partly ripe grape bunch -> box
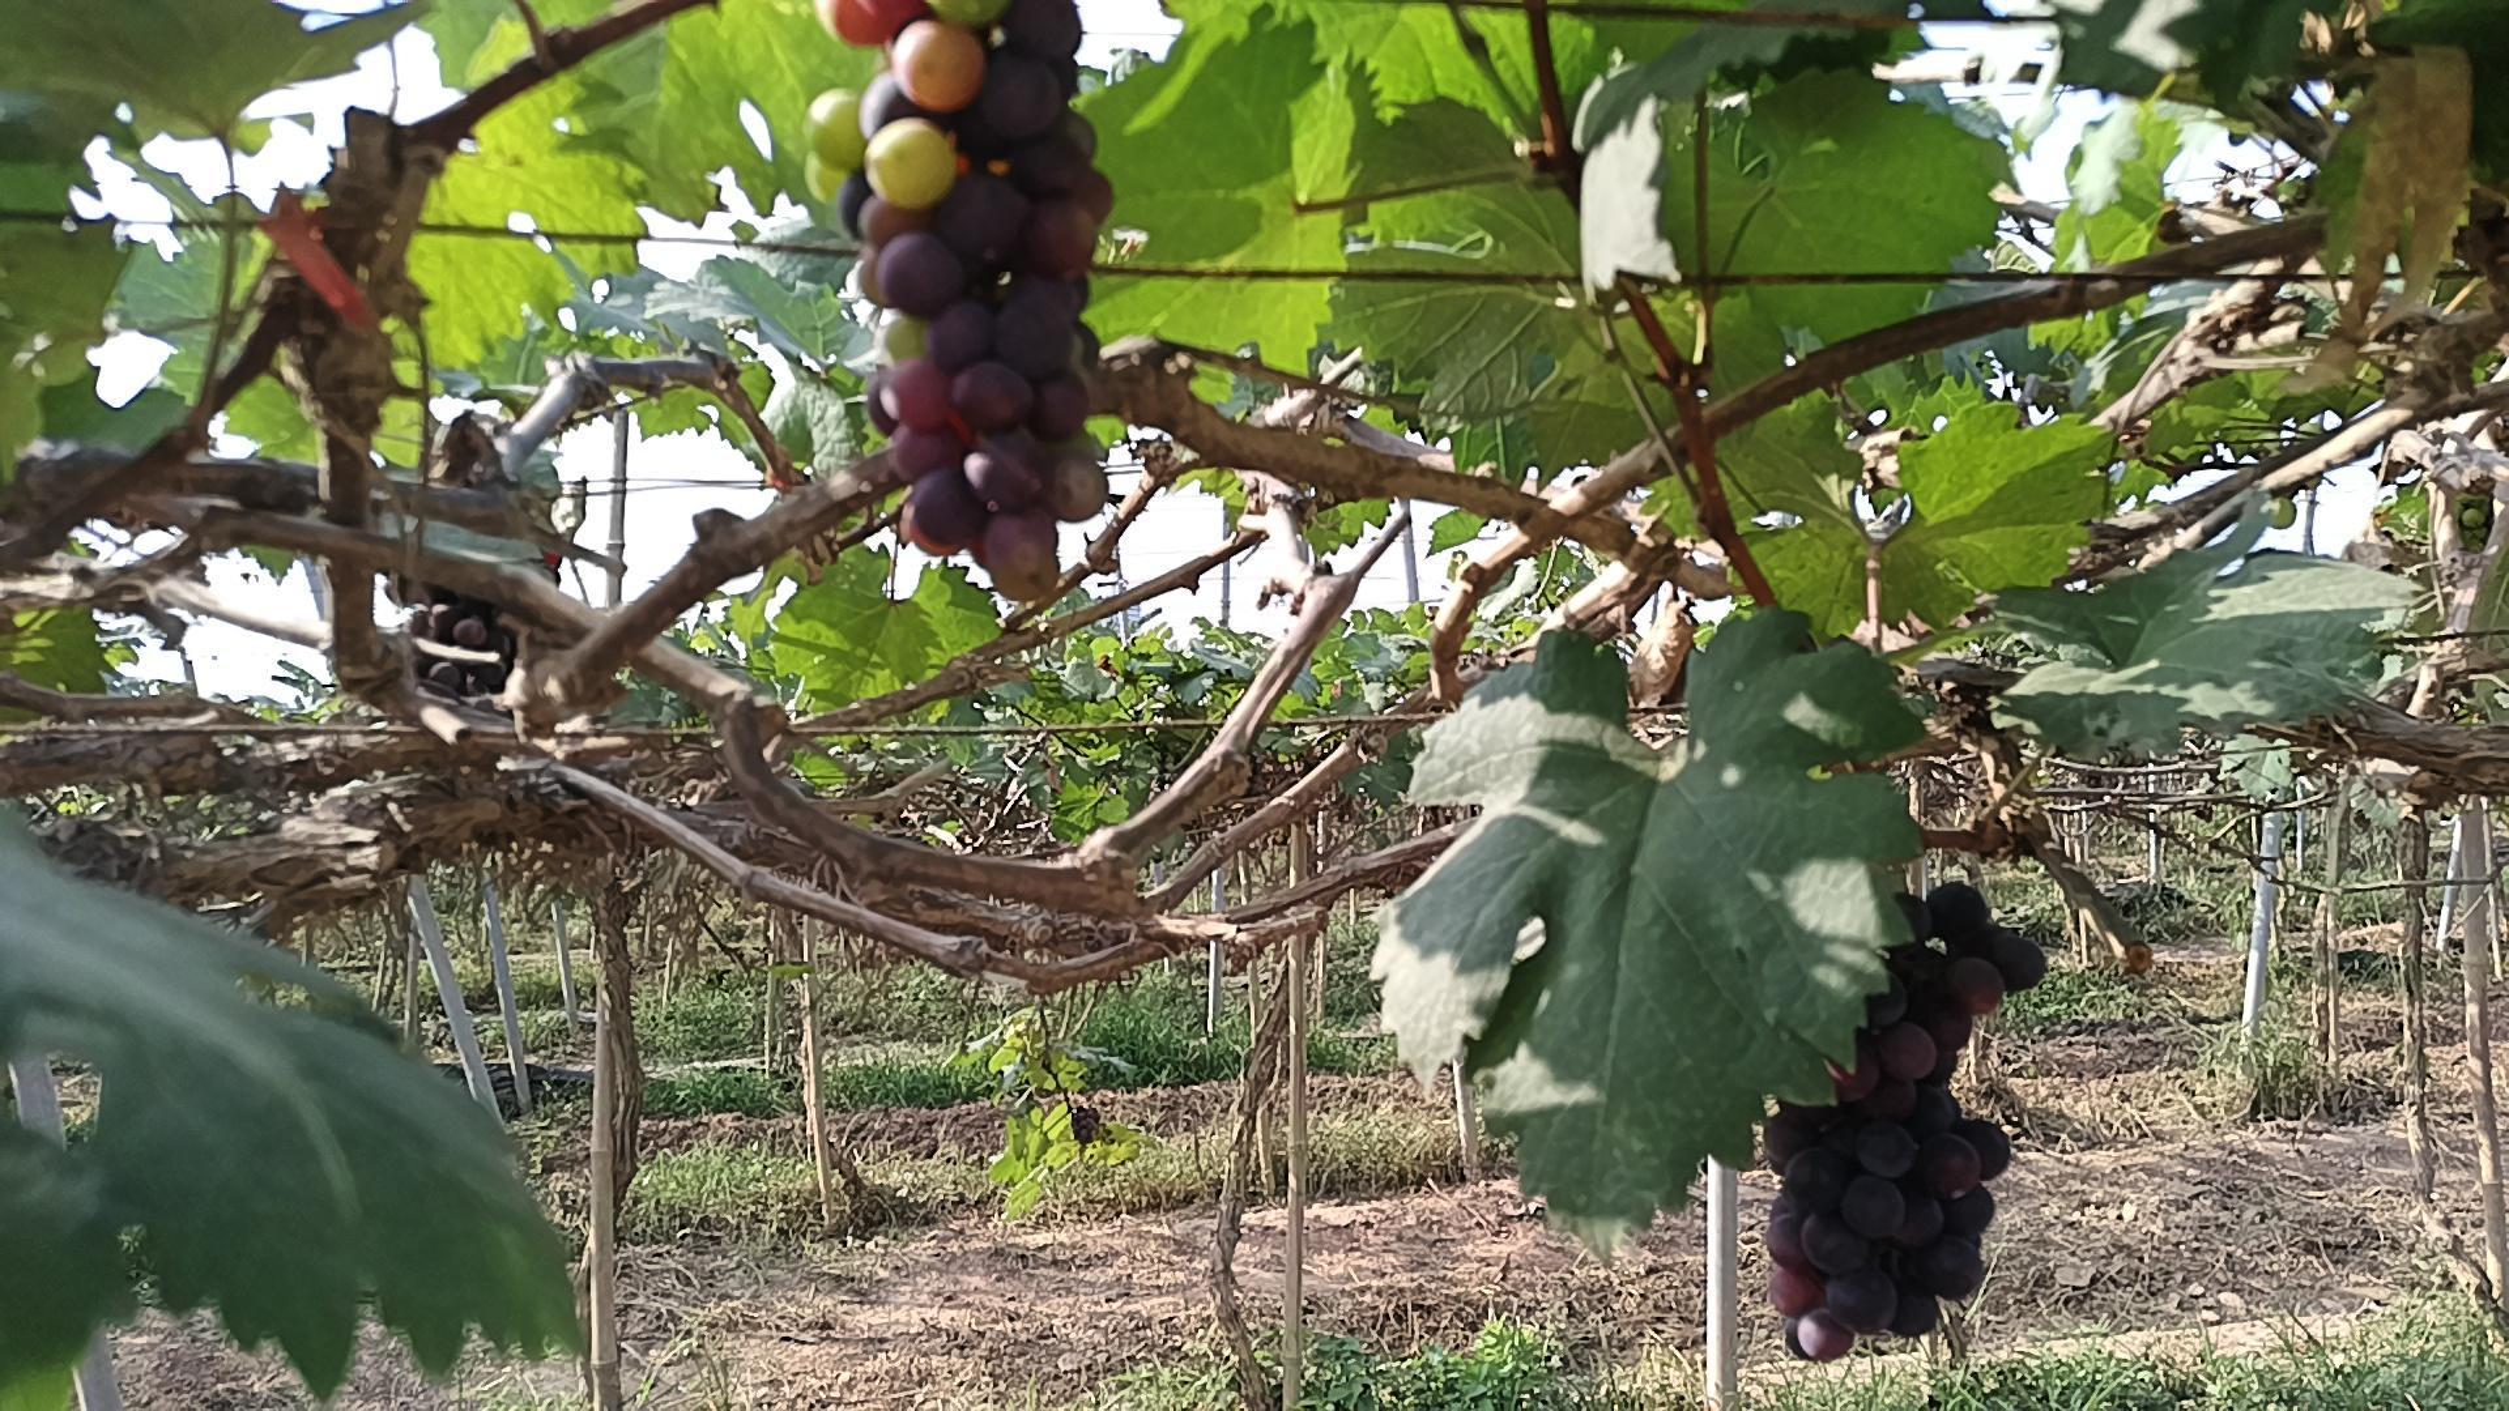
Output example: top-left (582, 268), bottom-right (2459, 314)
top-left (809, 0), bottom-right (1112, 598)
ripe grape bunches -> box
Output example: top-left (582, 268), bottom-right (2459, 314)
top-left (1763, 883), bottom-right (2045, 1360)
top-left (384, 567), bottom-right (517, 695)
